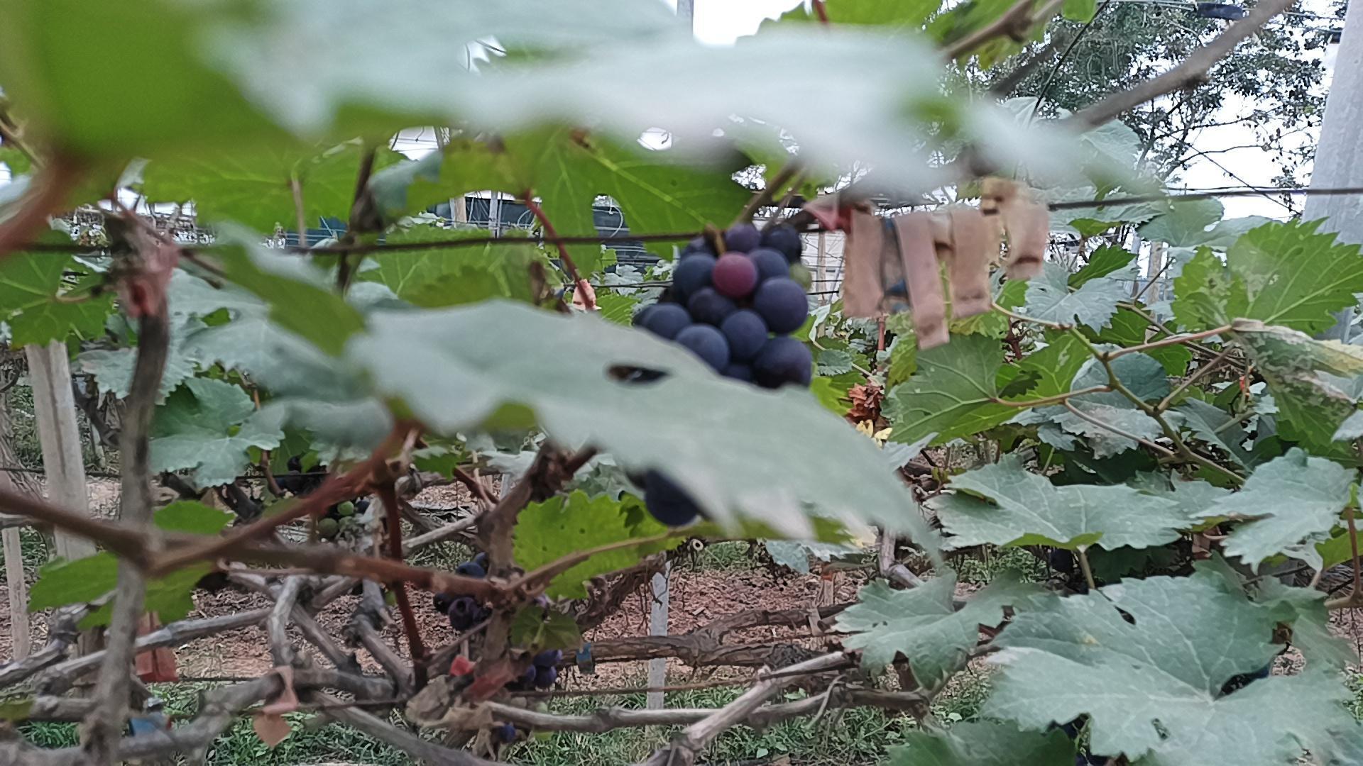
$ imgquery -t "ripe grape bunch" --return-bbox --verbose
[617,224,811,529]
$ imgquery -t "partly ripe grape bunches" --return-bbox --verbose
[433,552,562,745]
[268,452,376,539]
